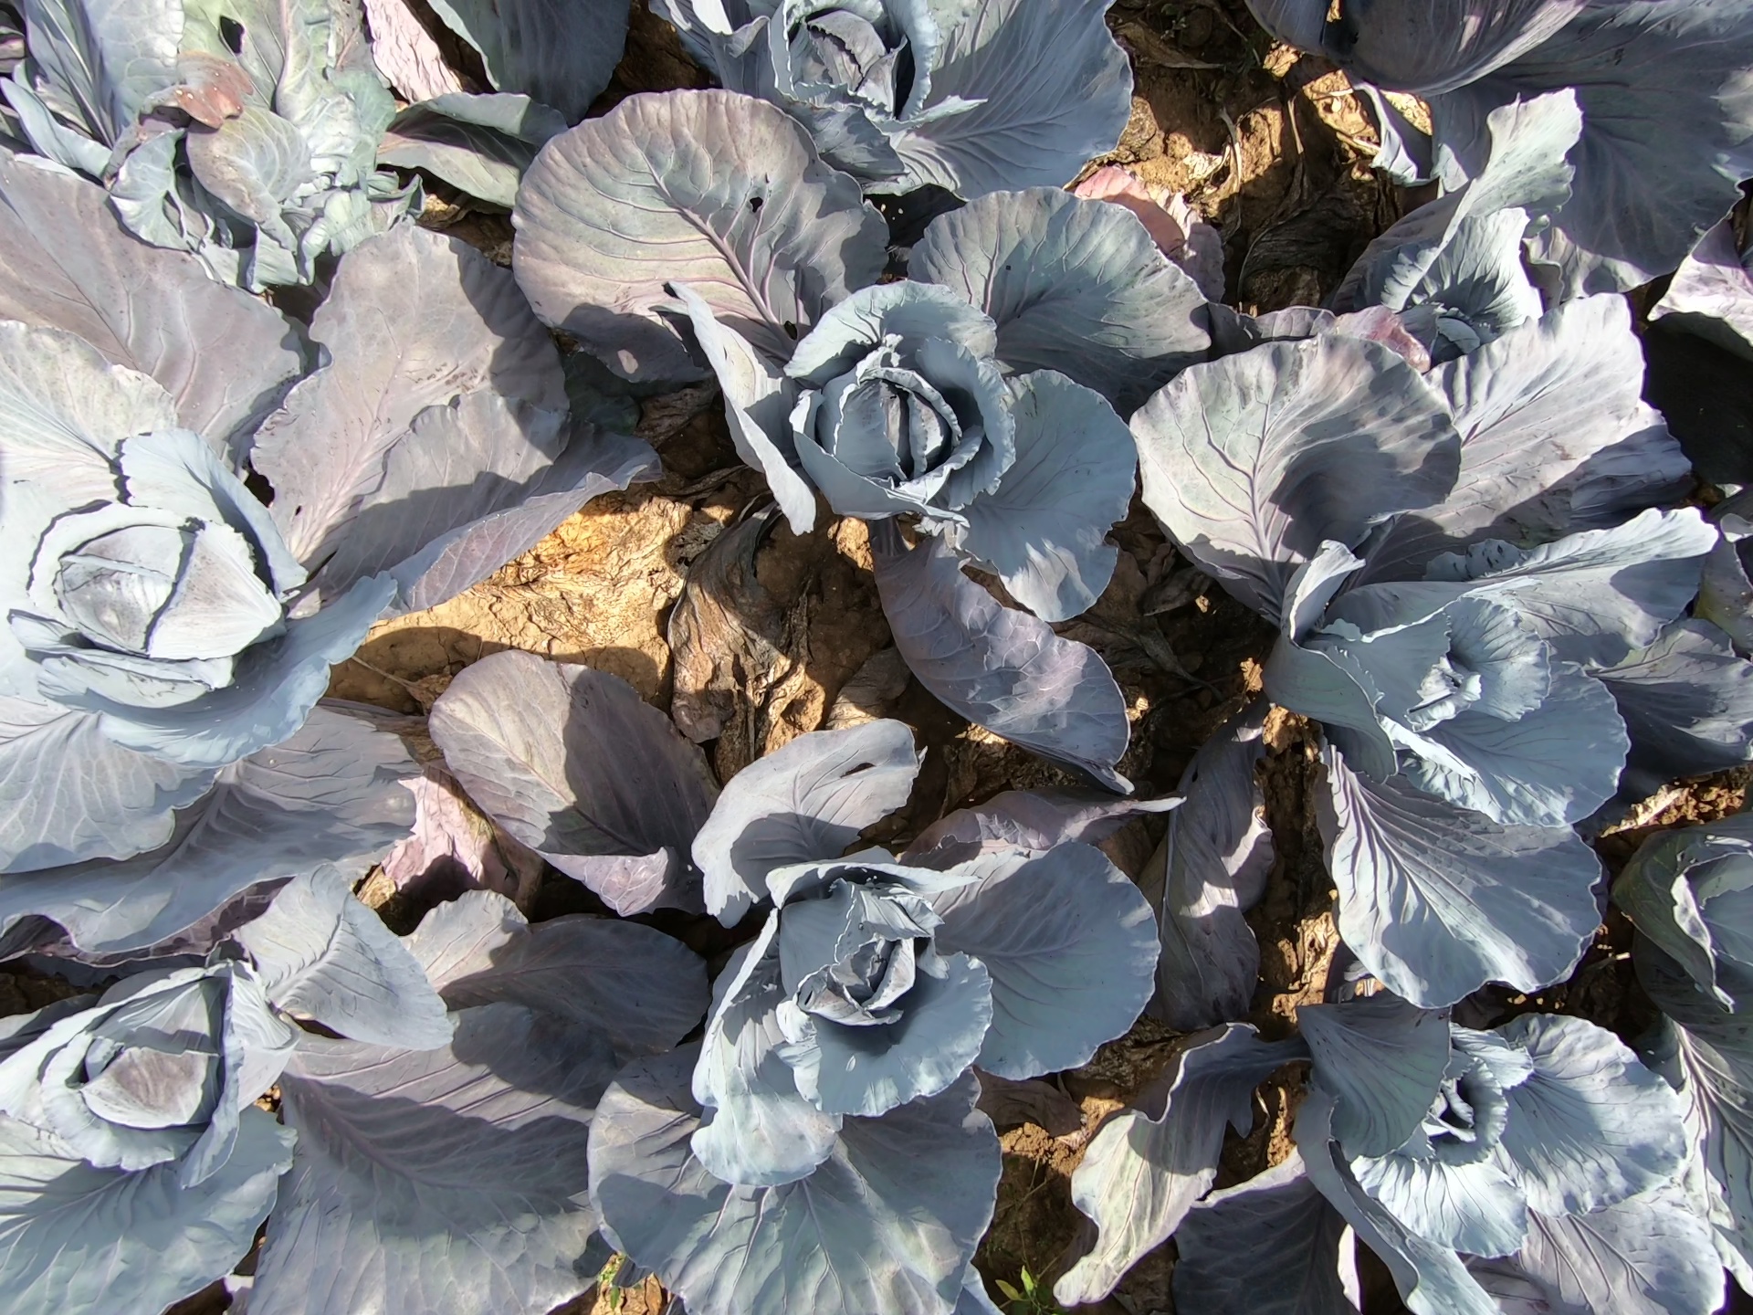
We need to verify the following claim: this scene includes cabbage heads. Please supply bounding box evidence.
[58,524,262,664]
[824,367,952,492]
[1333,1030,1463,1145]
[783,9,897,143]
[1355,308,1497,447]
[1332,616,1461,734]
[85,973,289,1130]
[789,895,914,1016]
